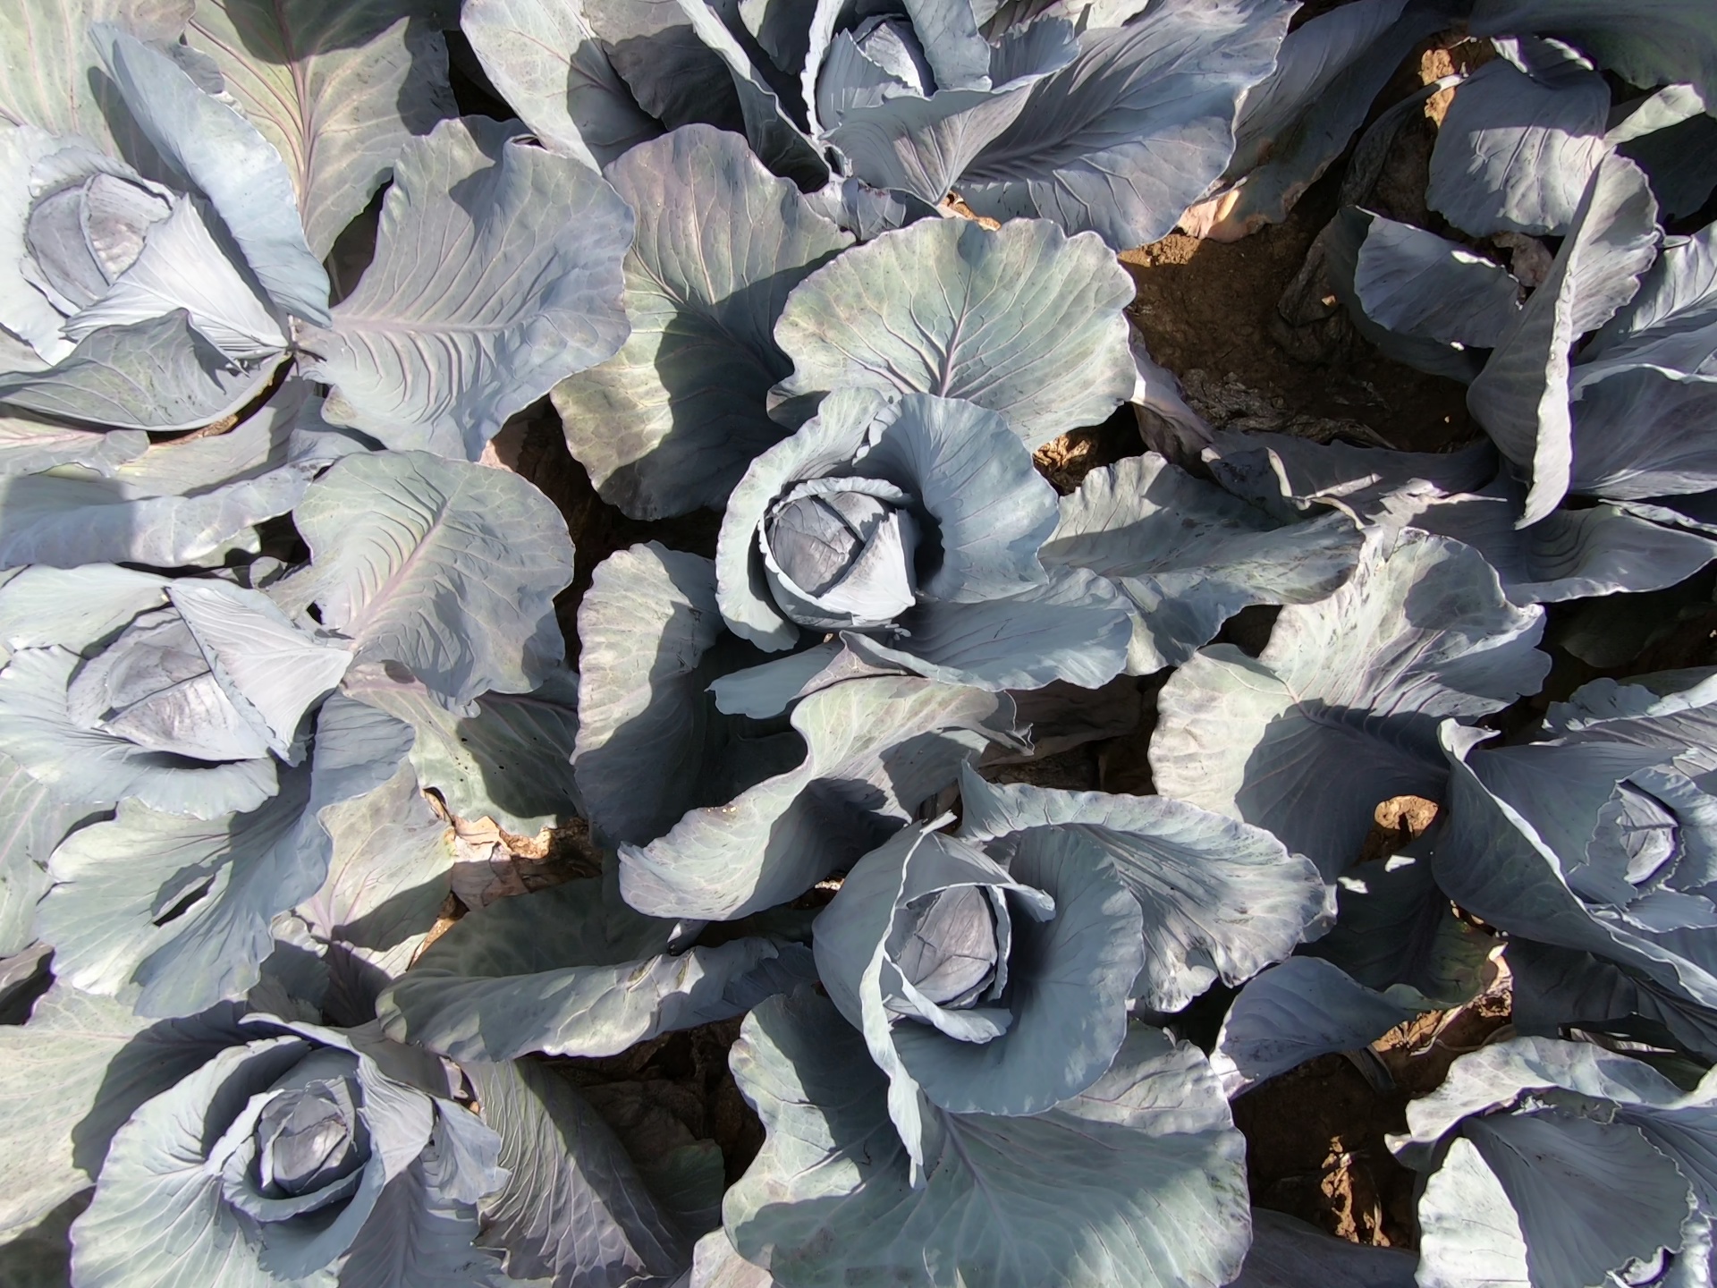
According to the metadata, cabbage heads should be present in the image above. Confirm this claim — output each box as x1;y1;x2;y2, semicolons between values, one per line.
258;1045;400;1204
1495;1128;1681;1282
1523;767;1680;894
813;21;962;165
102;596;317;759
834;833;1016;1026
759;483;918;629
21;173;220;332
